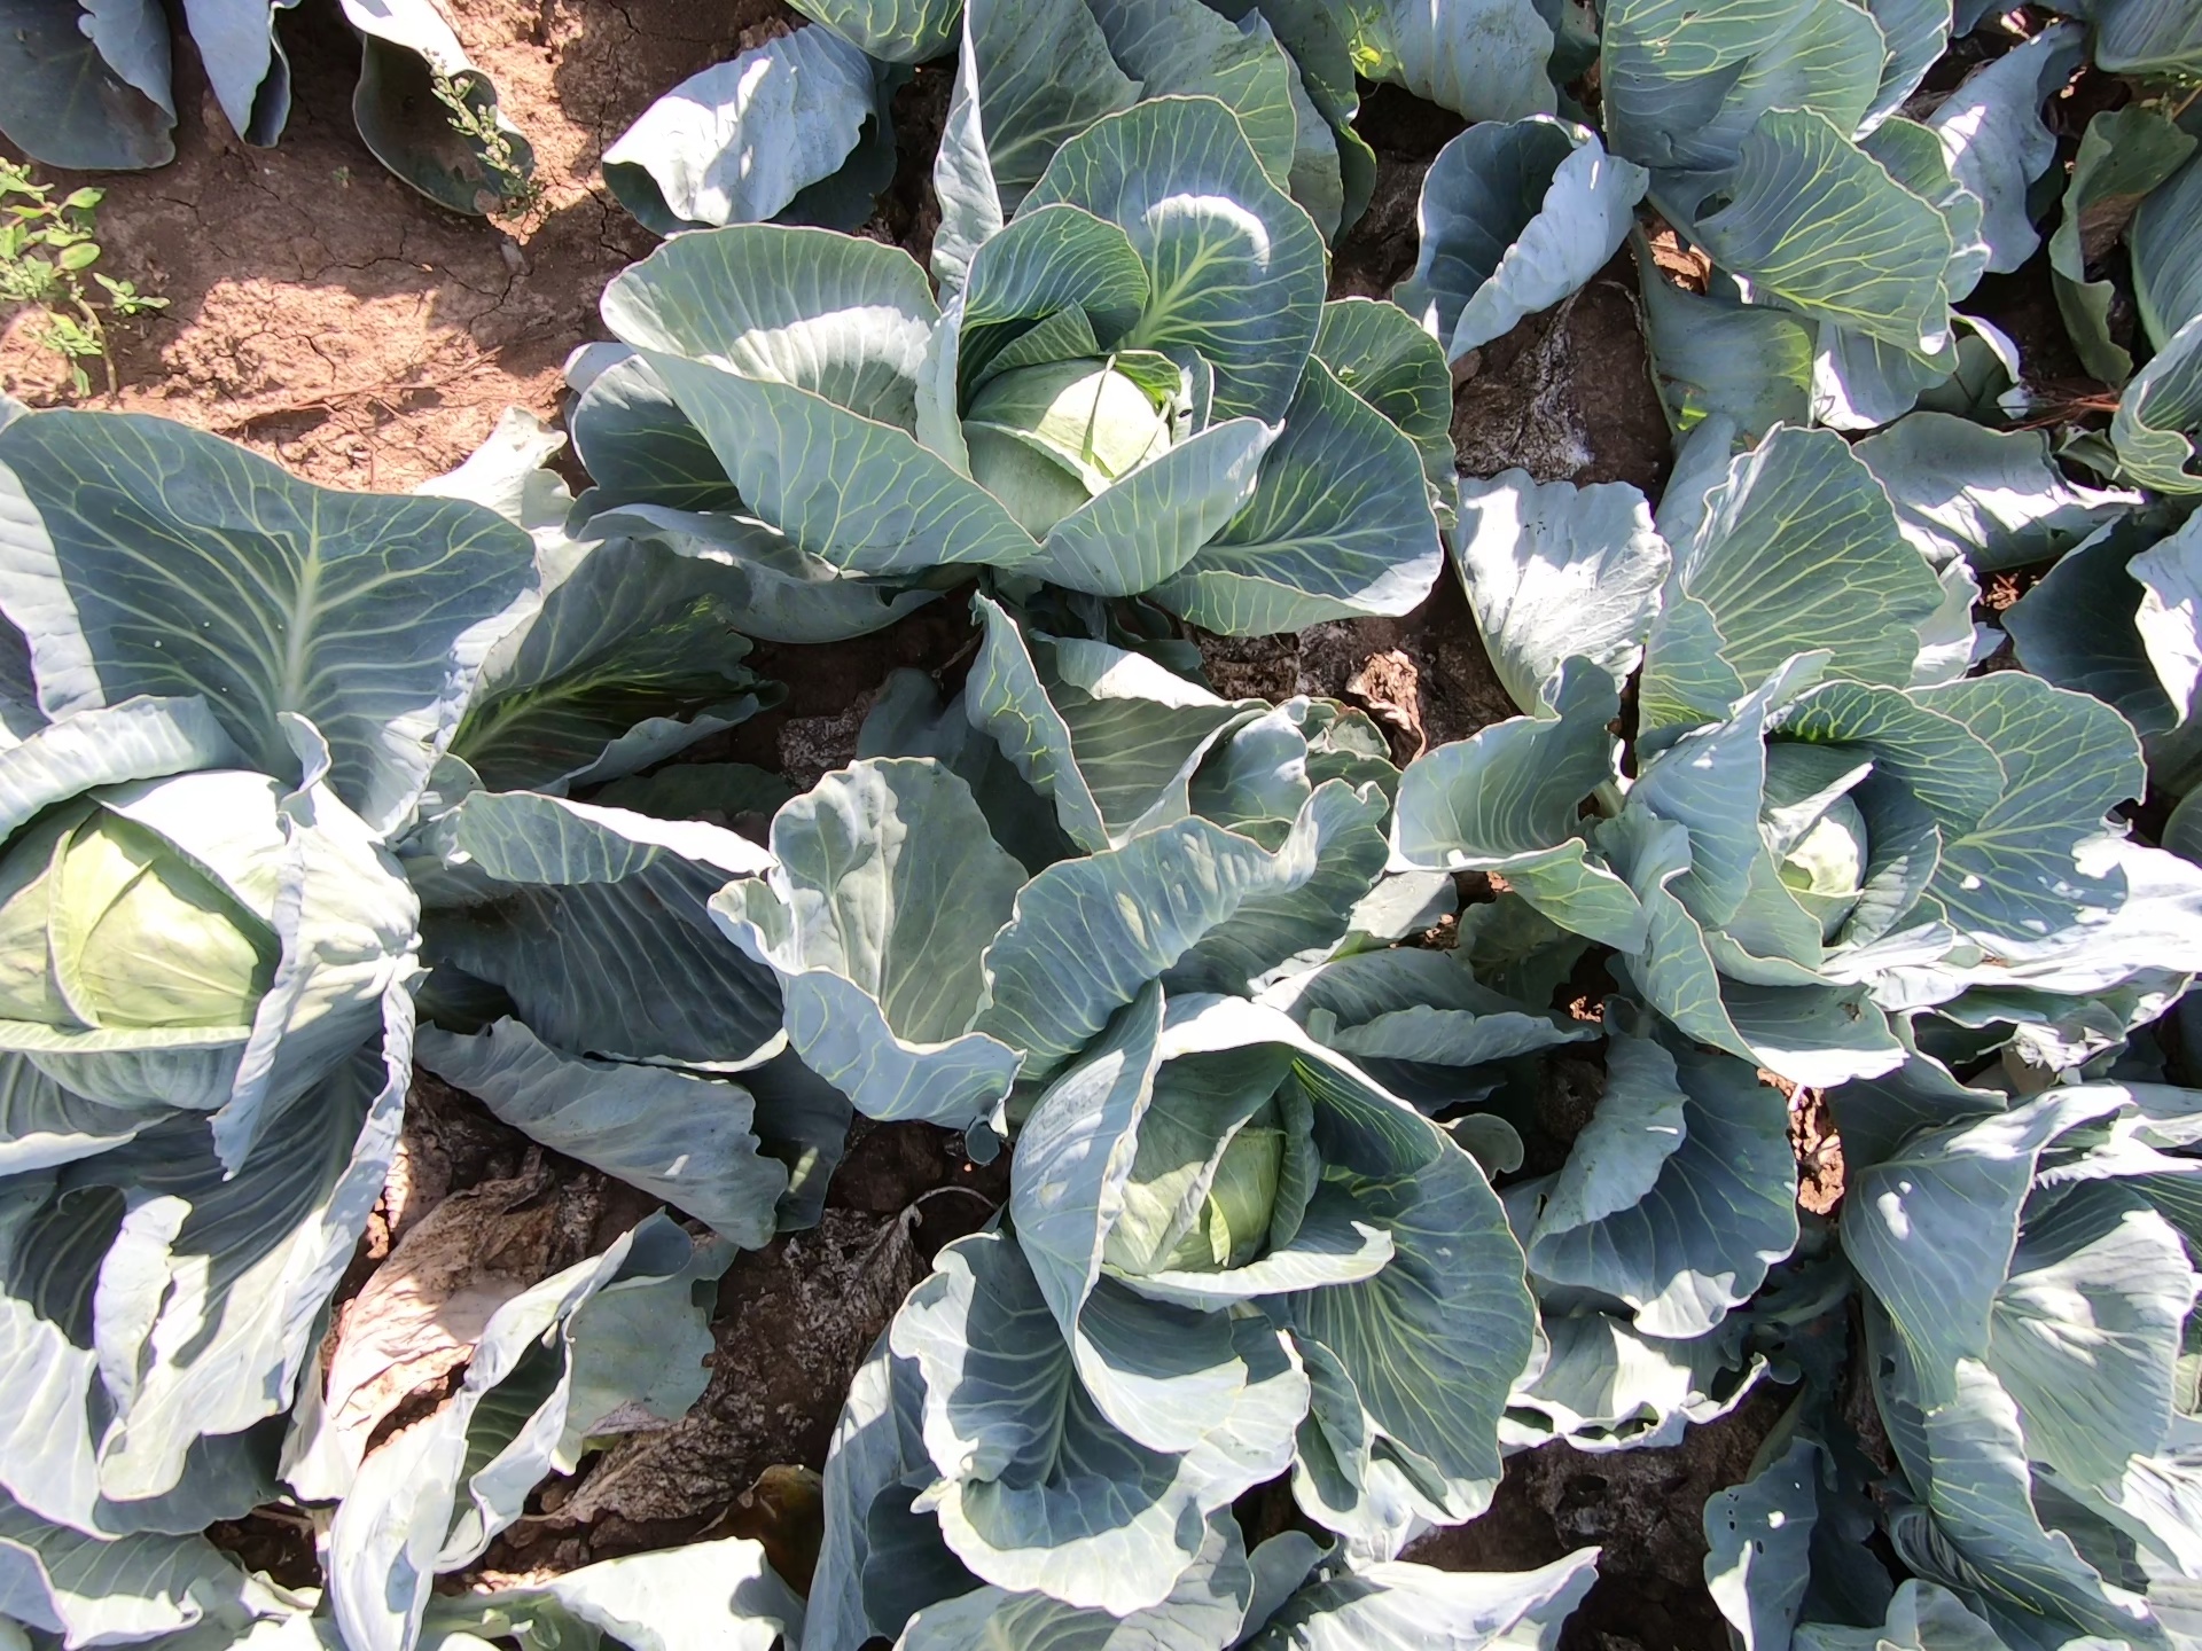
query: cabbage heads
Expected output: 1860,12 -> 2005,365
1094,1034 -> 1312,1277
3,770 -> 358,1103
962,349 -> 1180,548
1669,740 -> 1866,945
2022,1267 -> 2199,1456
